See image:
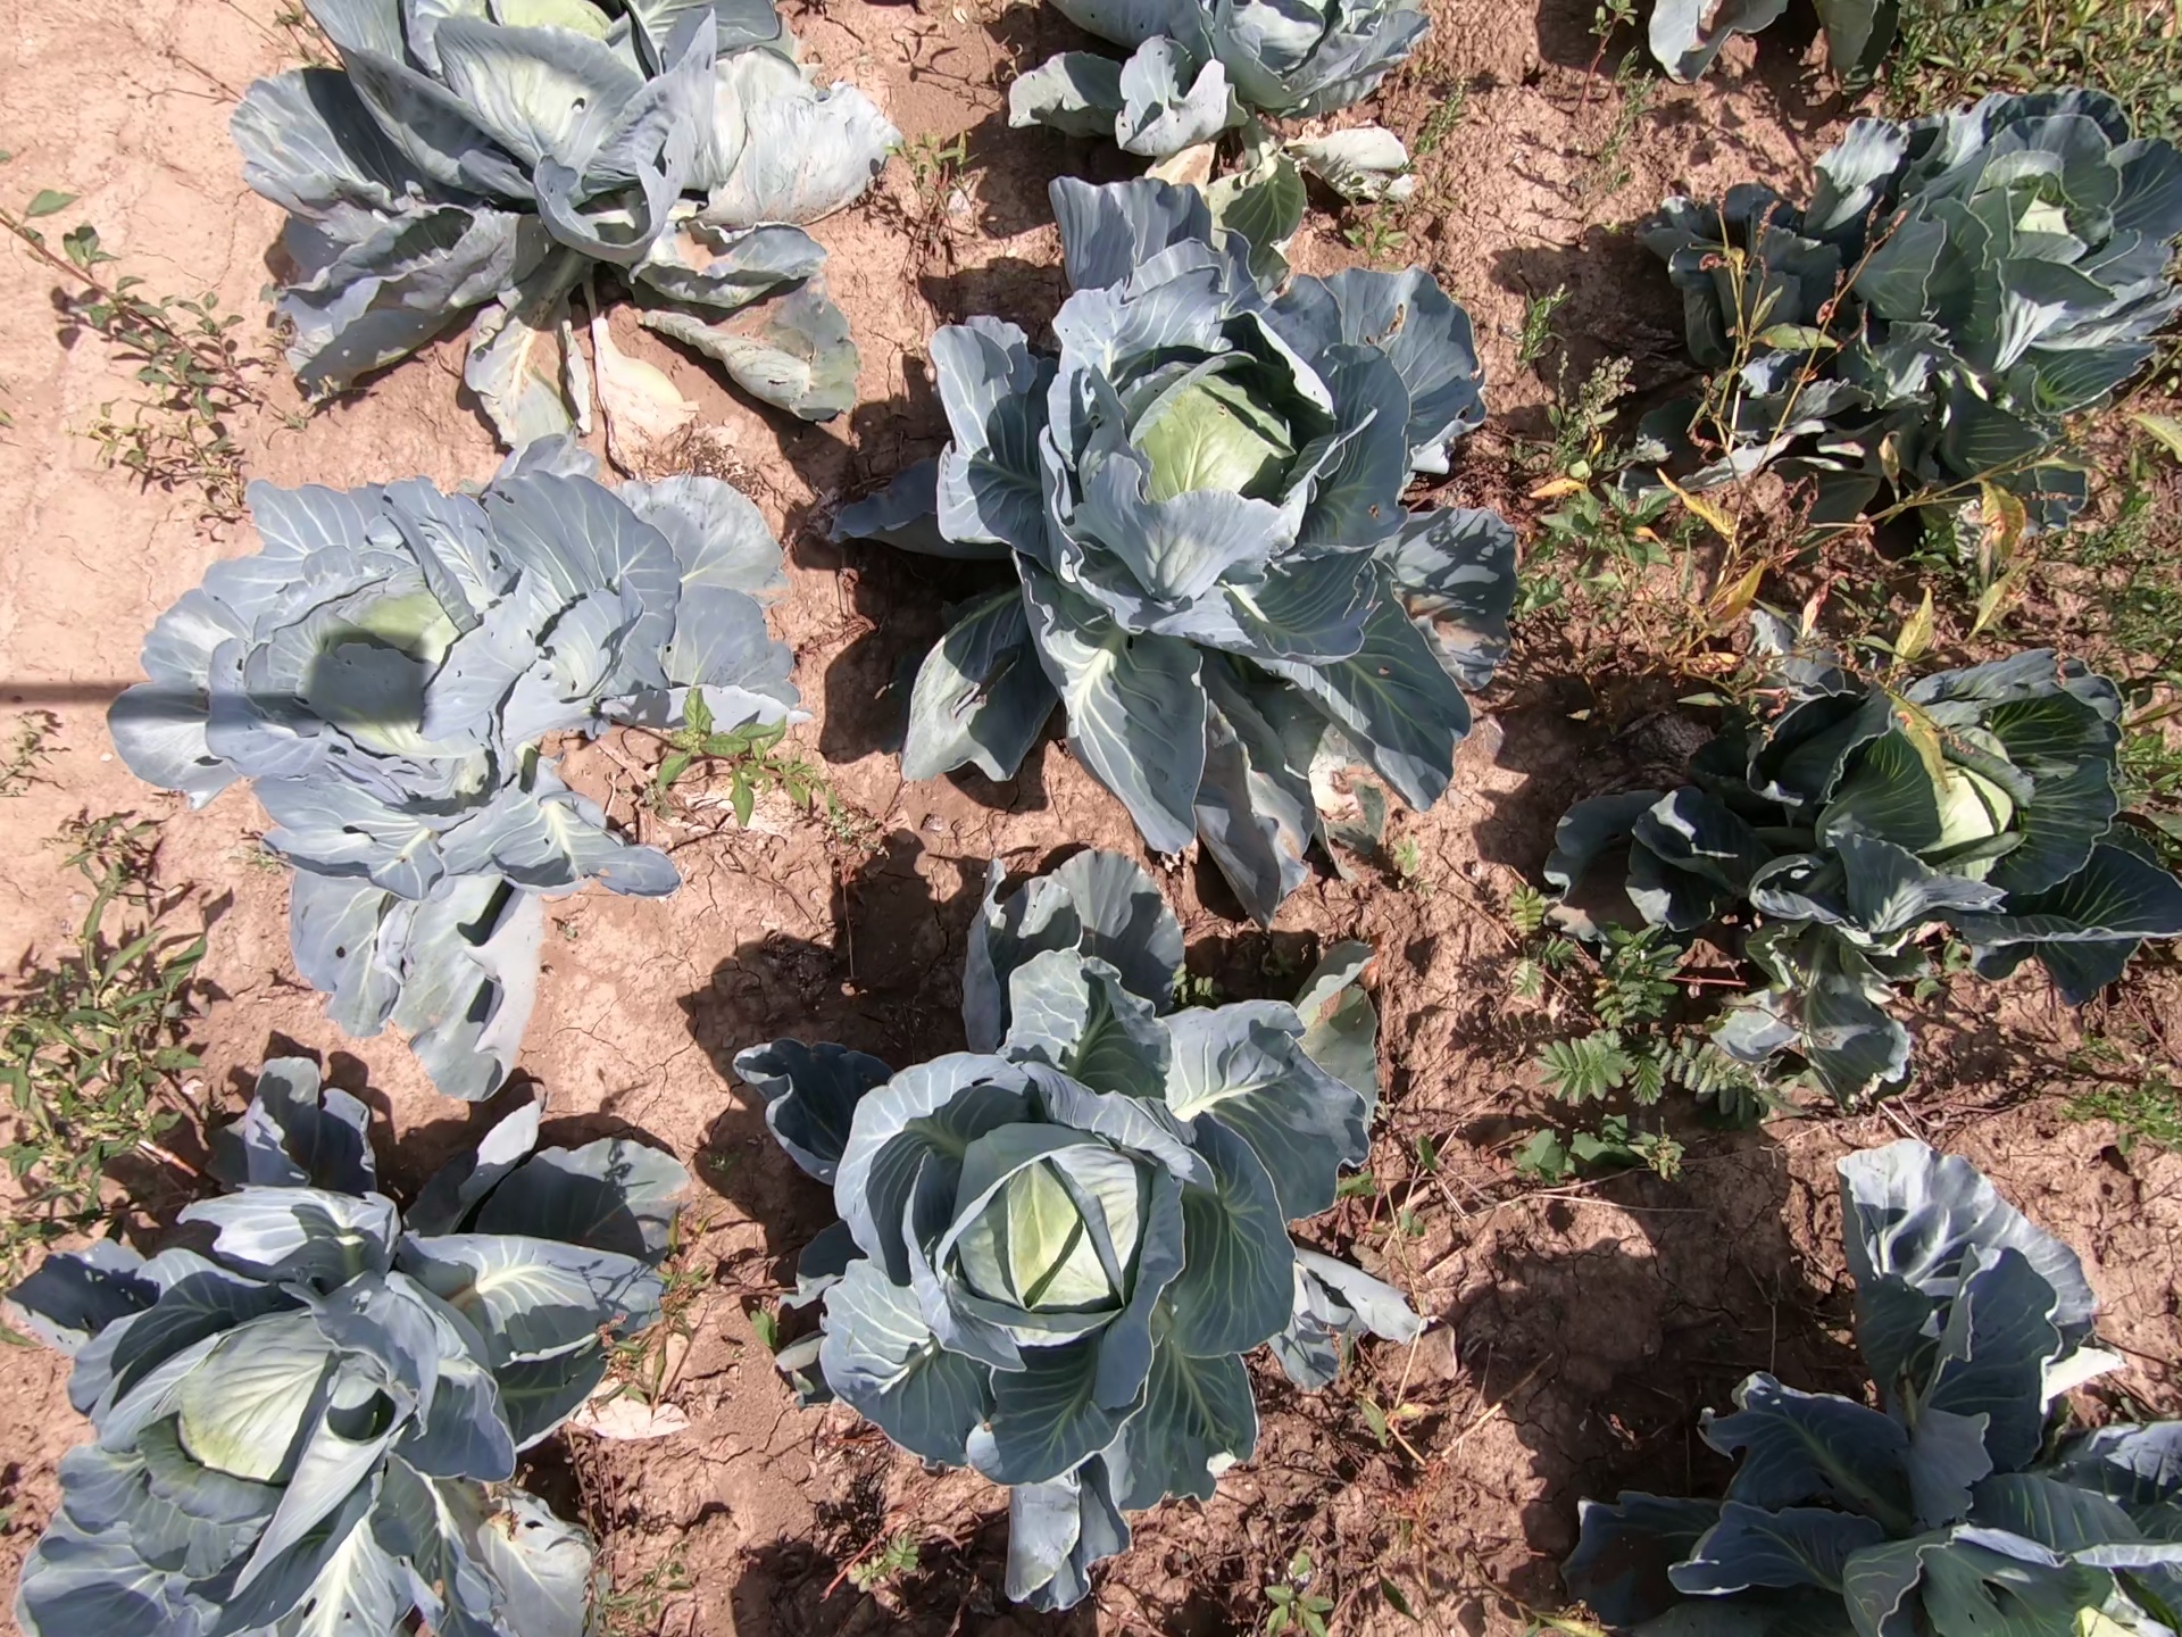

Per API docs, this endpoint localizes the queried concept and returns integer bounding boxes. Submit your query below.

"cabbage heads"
[1877,734,2019,890]
[159,1312,389,1515]
[293,580,533,757]
[952,1128,1156,1338]
[1939,186,2082,315]
[1082,359,1302,584]
[1929,1523,2156,1634]
[403,2,651,178]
